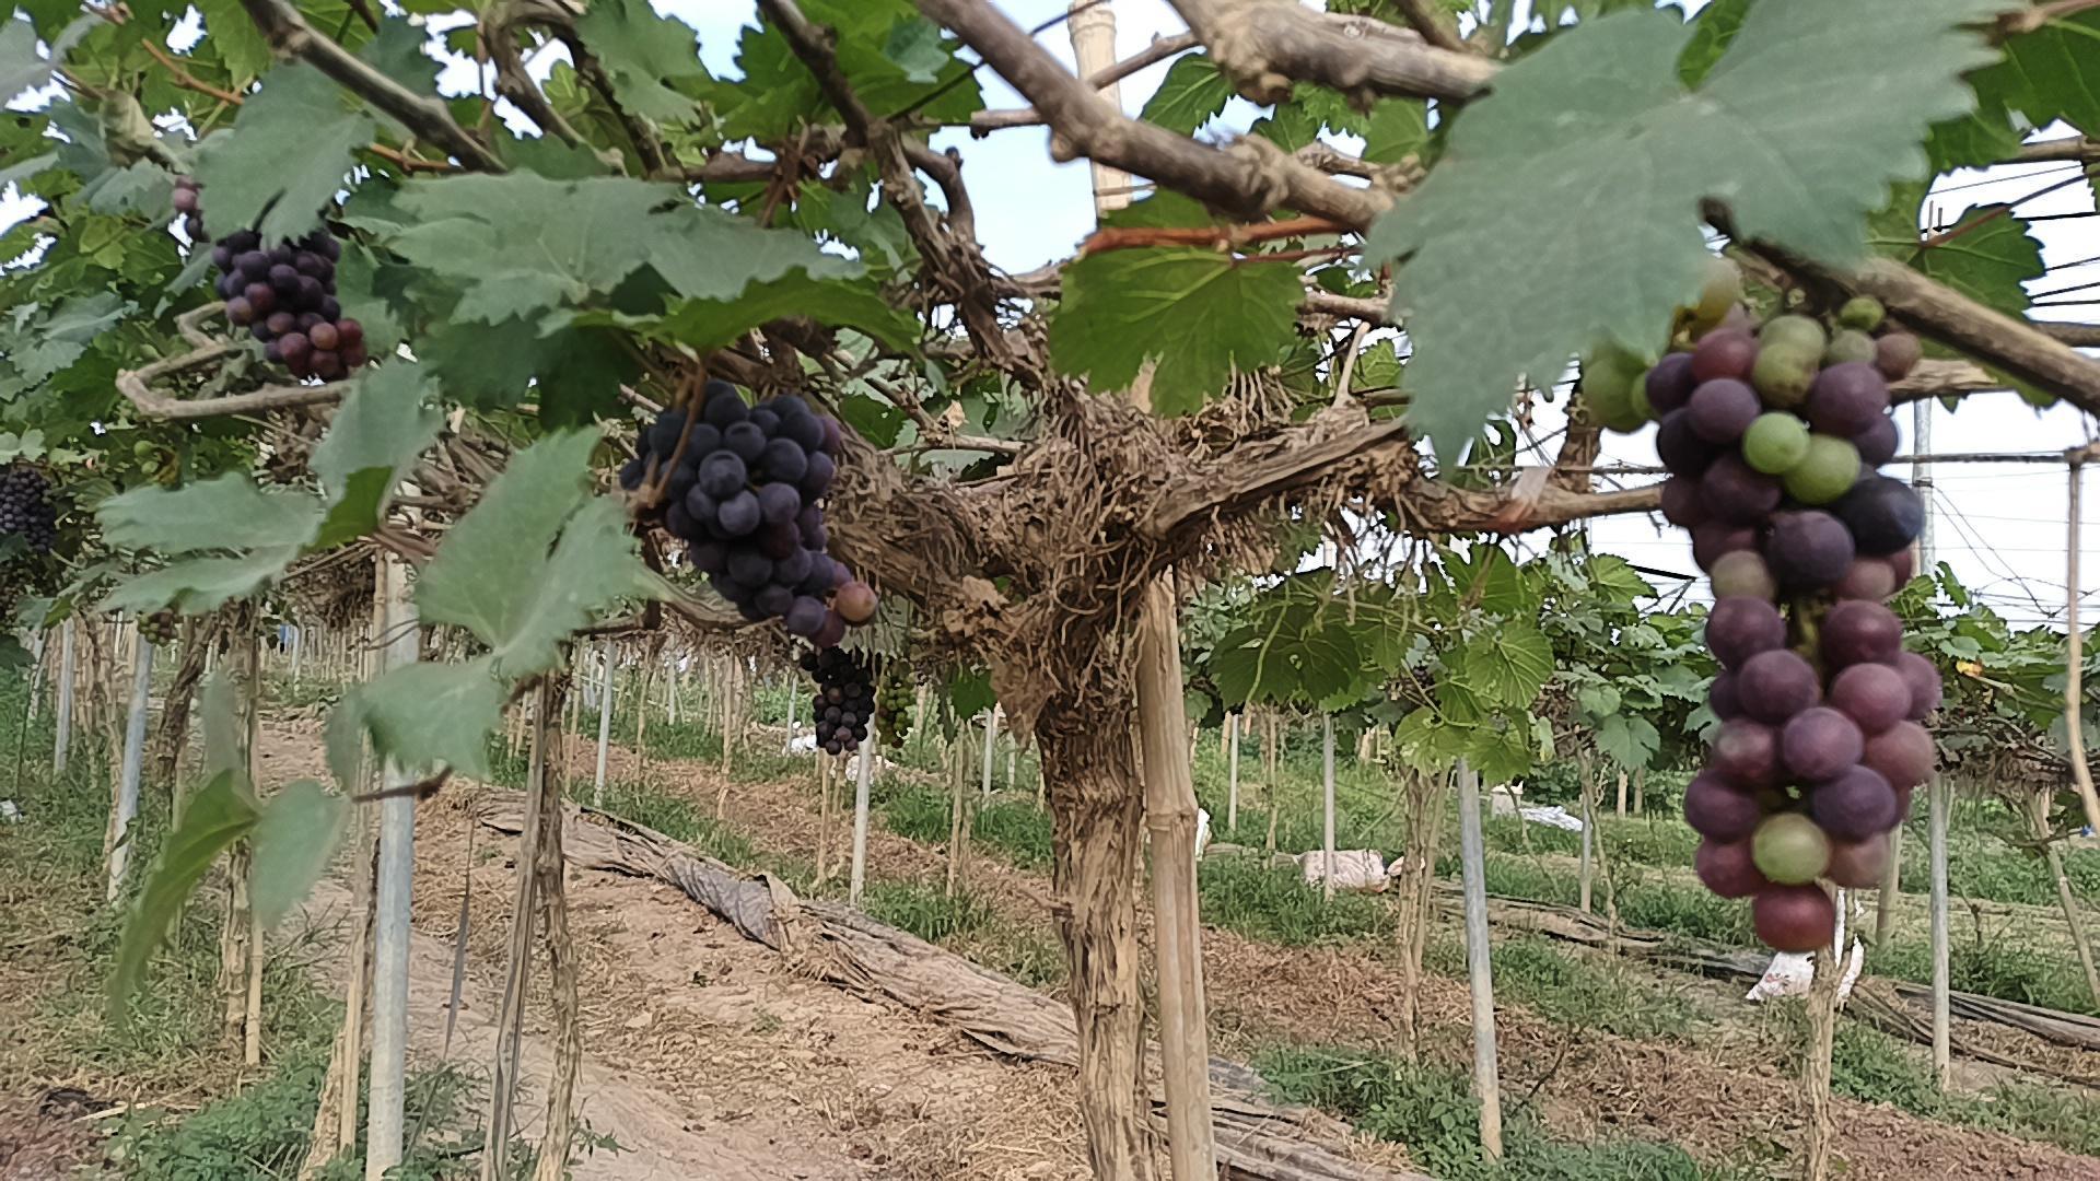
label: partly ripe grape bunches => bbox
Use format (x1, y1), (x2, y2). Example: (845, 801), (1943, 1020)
(1591, 272), (1933, 951)
(876, 658), (921, 750)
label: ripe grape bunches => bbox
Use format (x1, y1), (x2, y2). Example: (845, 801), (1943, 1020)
(174, 177), (366, 382)
(798, 646), (875, 755)
(620, 379), (876, 646)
